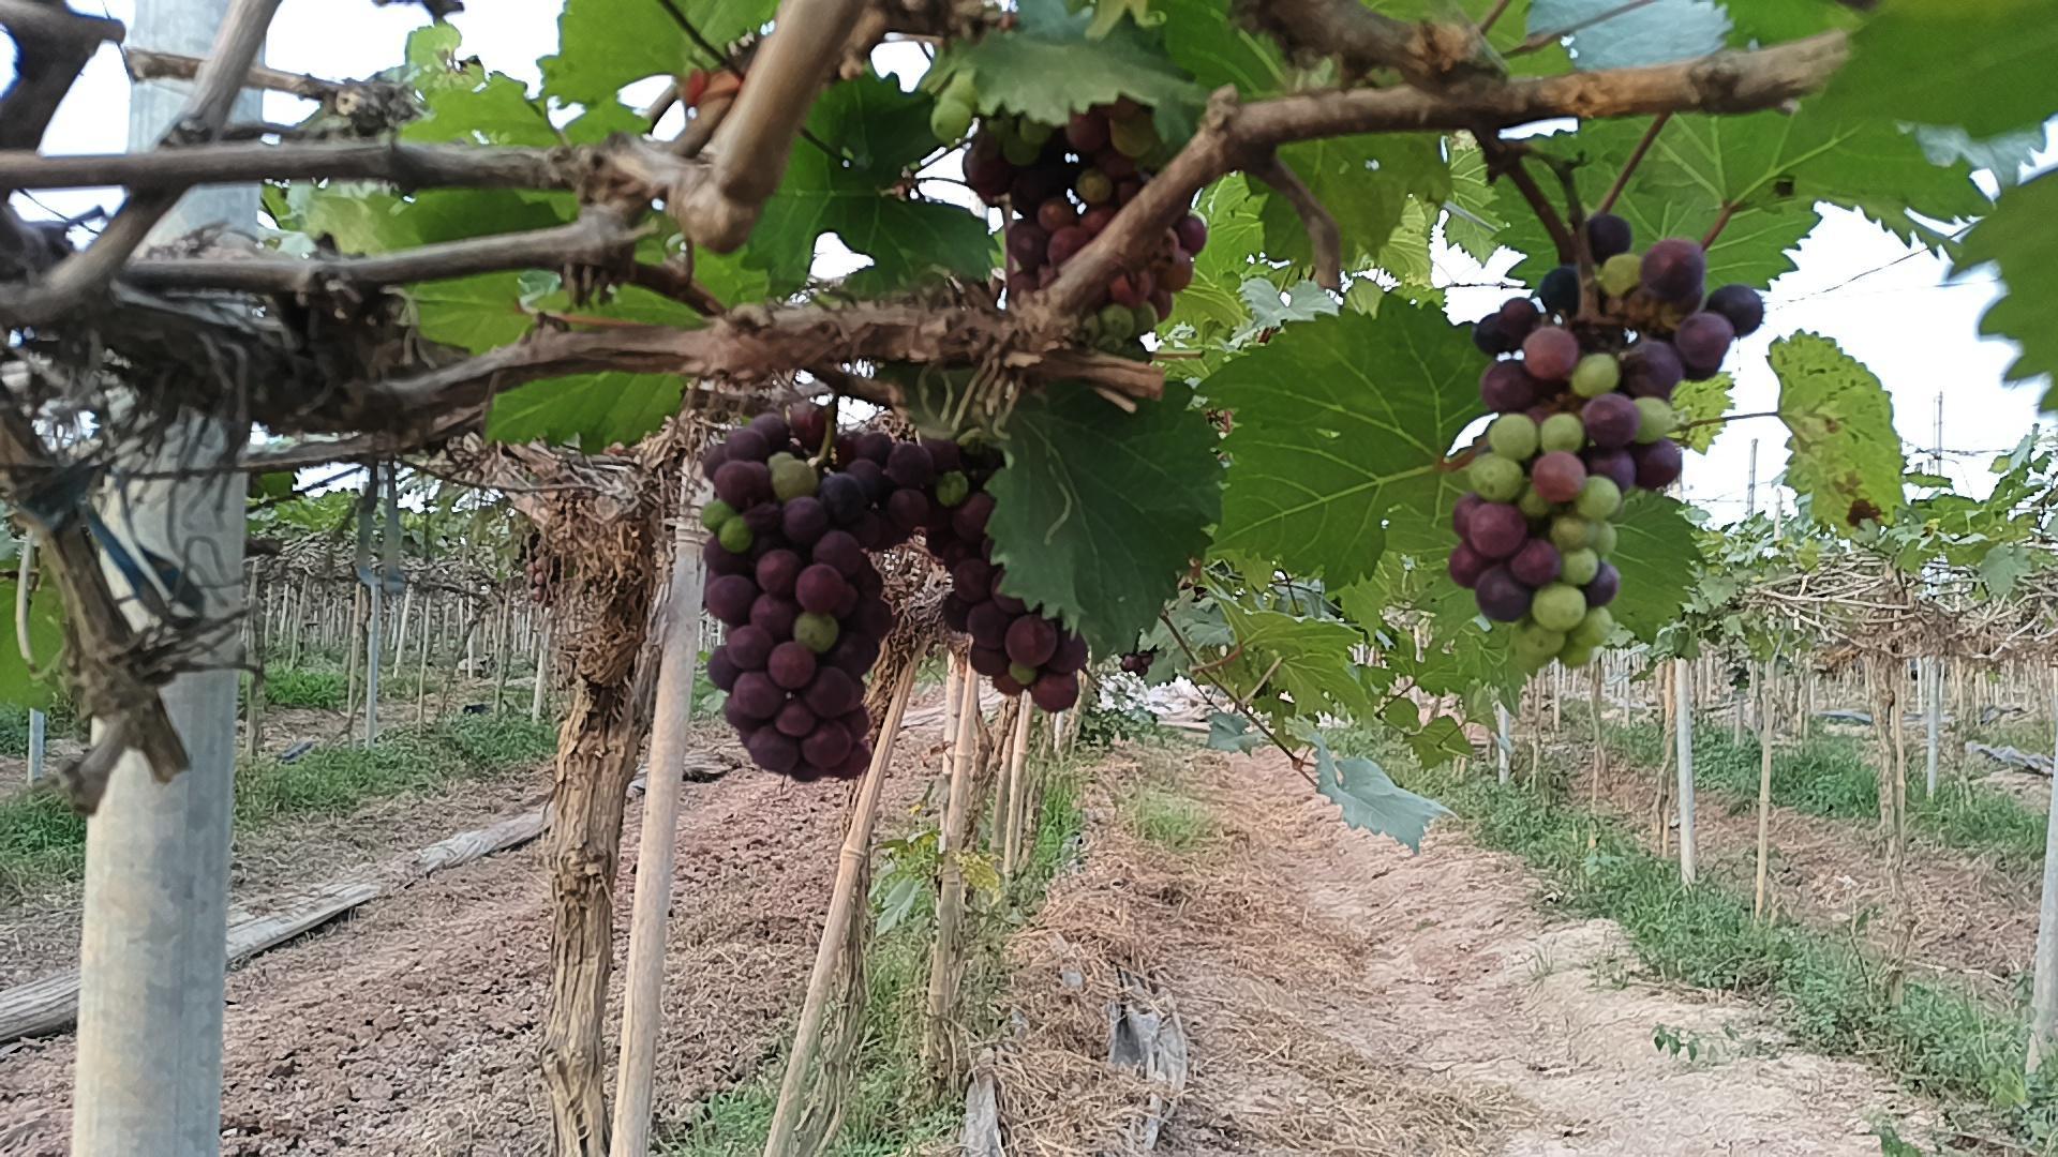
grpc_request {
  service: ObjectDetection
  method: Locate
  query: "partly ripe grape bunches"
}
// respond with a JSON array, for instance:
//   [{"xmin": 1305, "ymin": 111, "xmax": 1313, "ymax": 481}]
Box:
[
  {"xmin": 920, "ymin": 433, "xmax": 1088, "ymax": 711},
  {"xmin": 930, "ymin": 73, "xmax": 1207, "ymax": 354},
  {"xmin": 1448, "ymin": 214, "xmax": 1763, "ymax": 668},
  {"xmin": 701, "ymin": 401, "xmax": 935, "ymax": 782}
]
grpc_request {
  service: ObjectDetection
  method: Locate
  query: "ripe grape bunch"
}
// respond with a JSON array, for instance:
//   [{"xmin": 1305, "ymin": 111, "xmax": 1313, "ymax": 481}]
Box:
[{"xmin": 1118, "ymin": 646, "xmax": 1158, "ymax": 678}]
